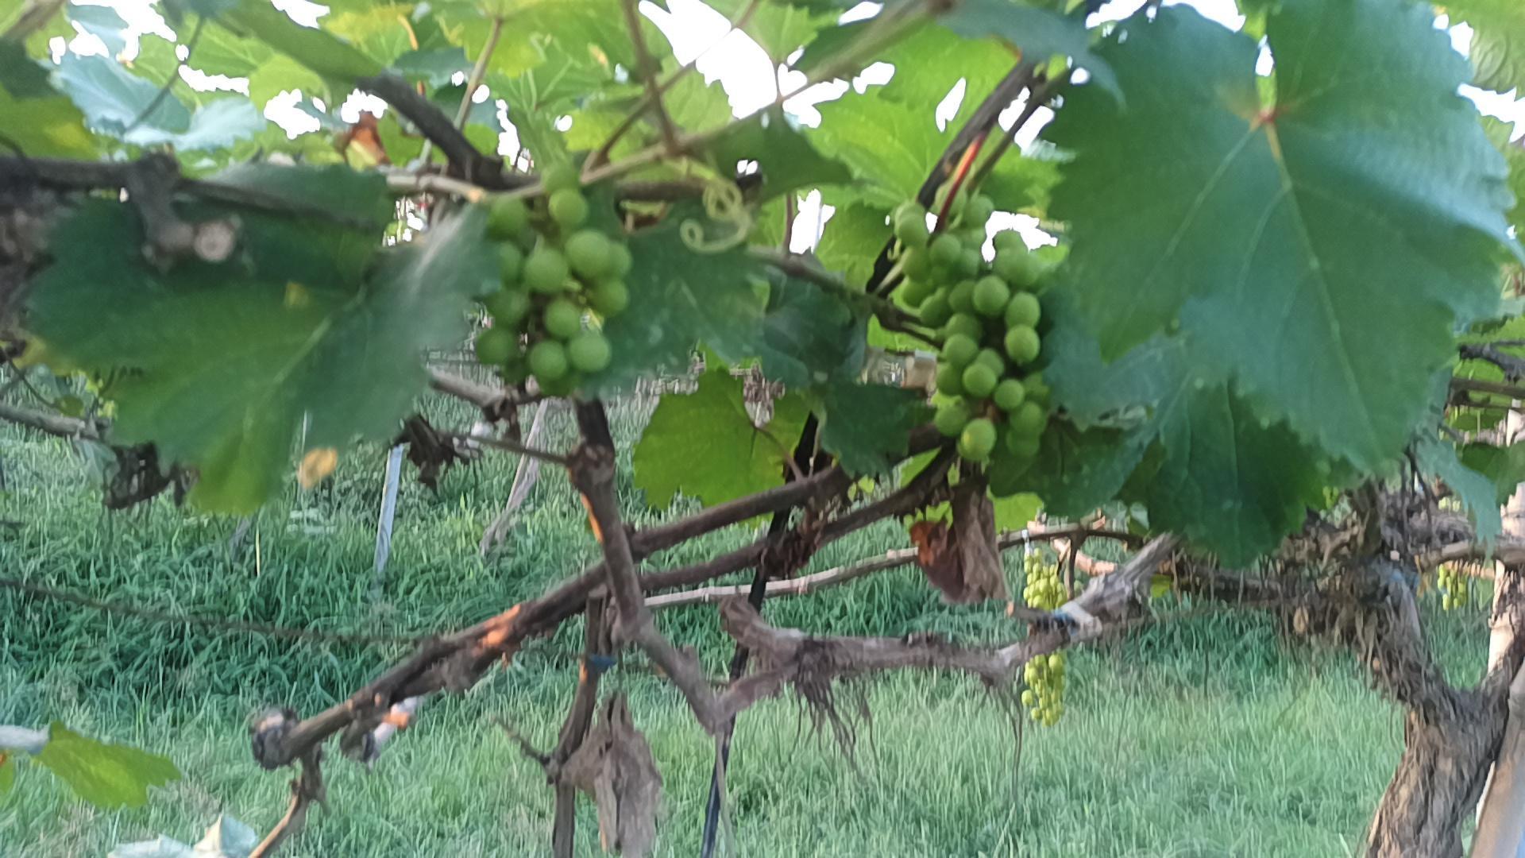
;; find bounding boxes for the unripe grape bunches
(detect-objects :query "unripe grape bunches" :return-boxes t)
[1021,543,1071,611]
[1437,563,1465,610]
[892,195,1052,463]
[477,182,631,393]
[1021,650,1067,726]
